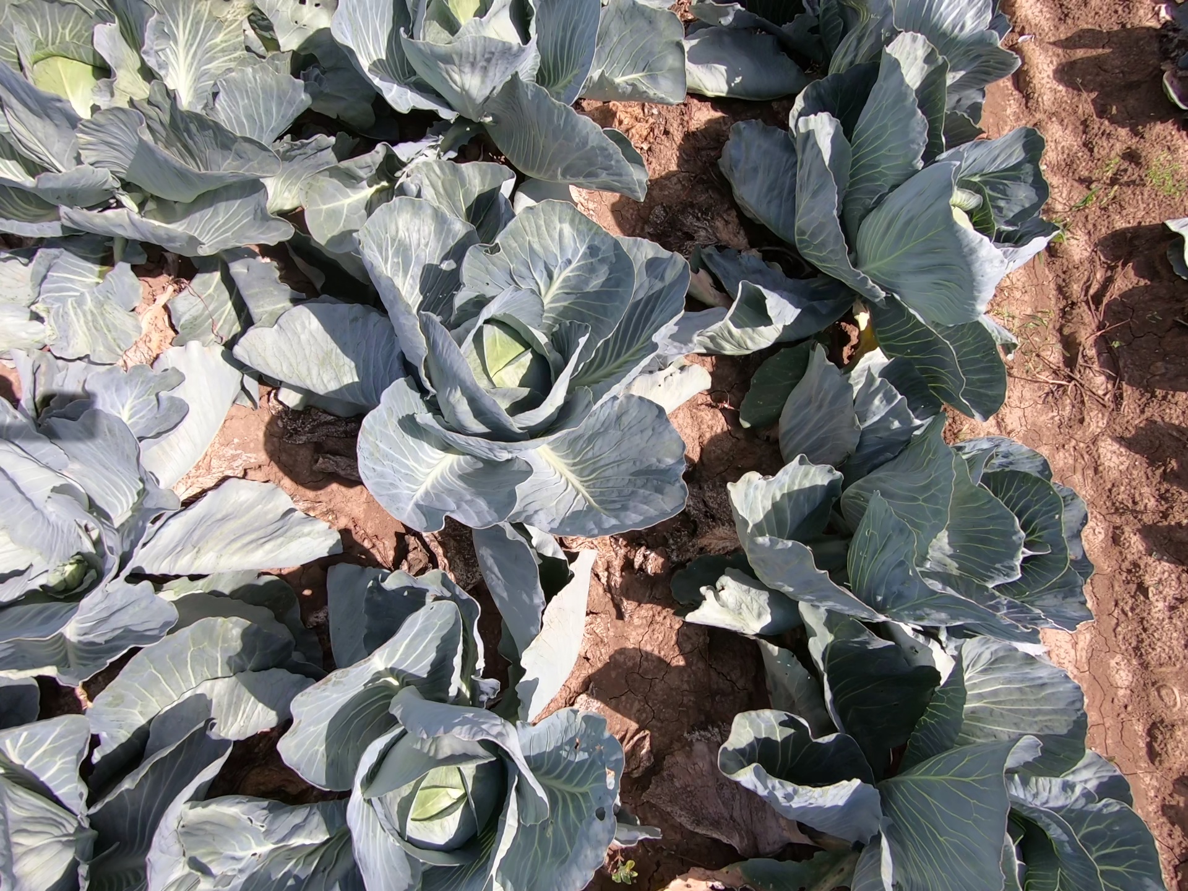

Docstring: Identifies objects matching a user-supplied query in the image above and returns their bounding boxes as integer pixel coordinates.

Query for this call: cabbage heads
[438,316,564,437]
[7,51,143,179]
[923,794,1028,890]
[373,722,509,862]
[414,0,522,116]
[866,190,978,294]
[1,778,77,887]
